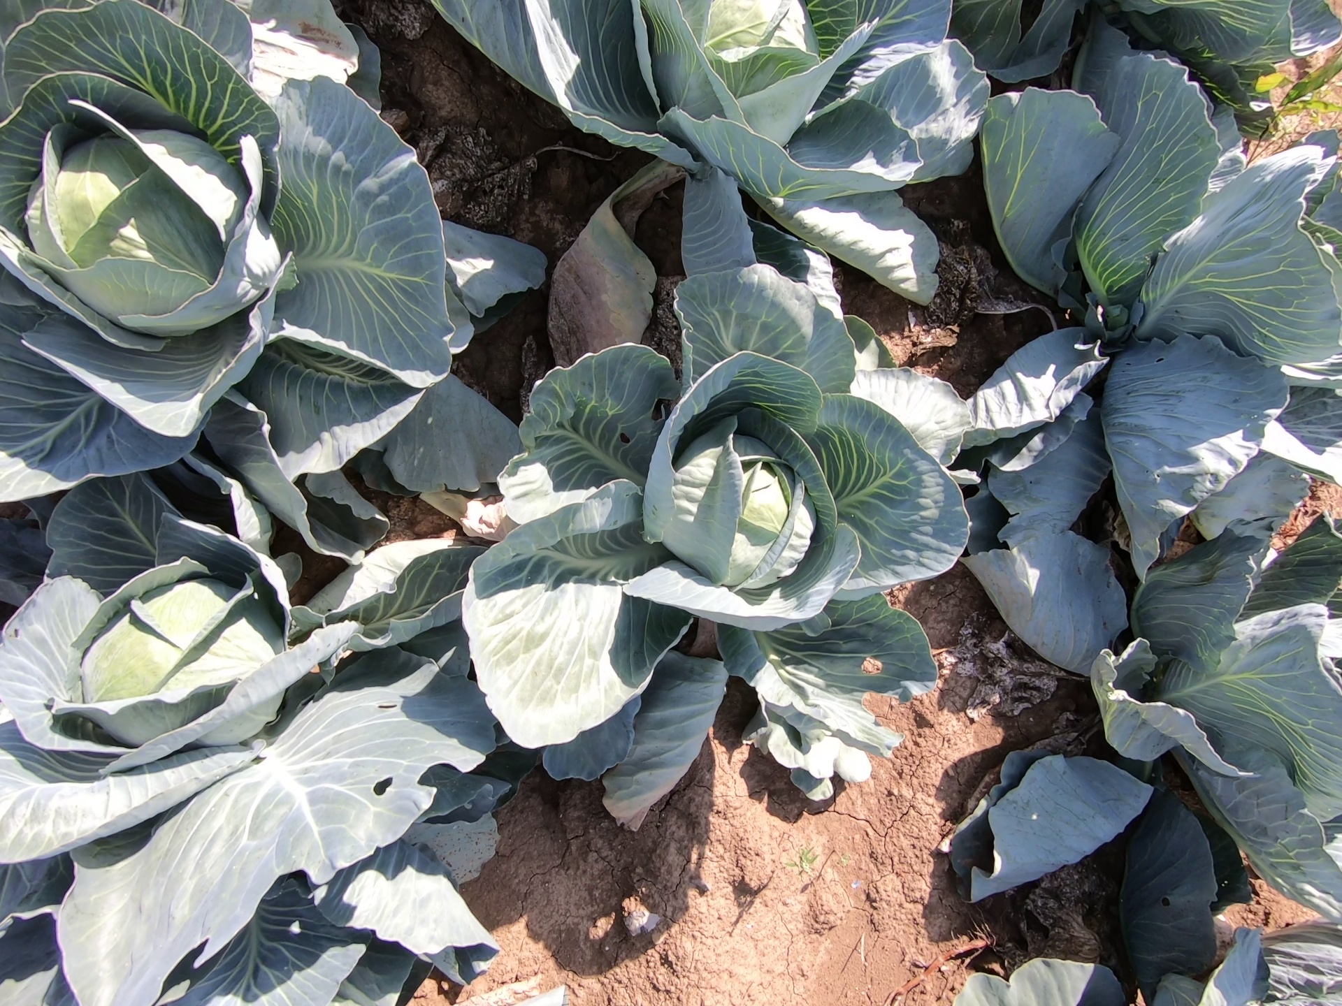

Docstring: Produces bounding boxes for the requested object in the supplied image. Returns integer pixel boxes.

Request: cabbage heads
[30,130,271,331]
[80,572,283,750]
[653,0,816,131]
[684,438,818,595]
